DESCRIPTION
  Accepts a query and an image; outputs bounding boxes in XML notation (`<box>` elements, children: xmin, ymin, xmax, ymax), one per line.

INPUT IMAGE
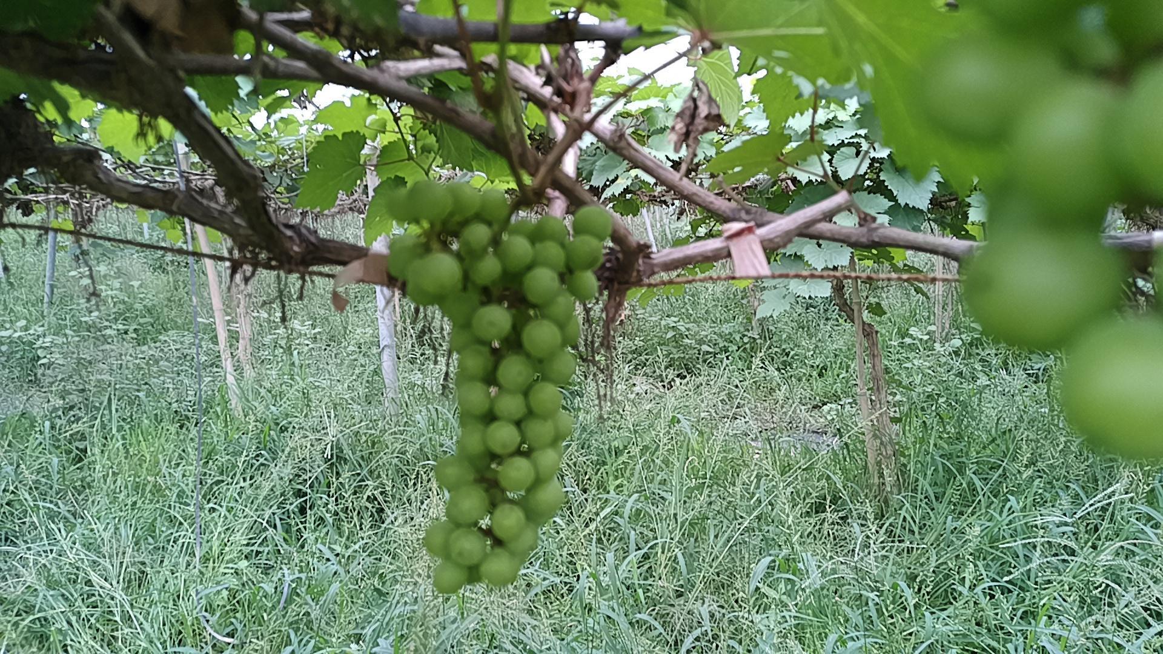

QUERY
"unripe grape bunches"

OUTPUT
<box><xmin>920</xmin><ymin>0</ymin><xmax>1162</xmax><ymax>458</ymax></box>
<box><xmin>389</xmin><ymin>182</ymin><xmax>611</xmax><ymax>593</ymax></box>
